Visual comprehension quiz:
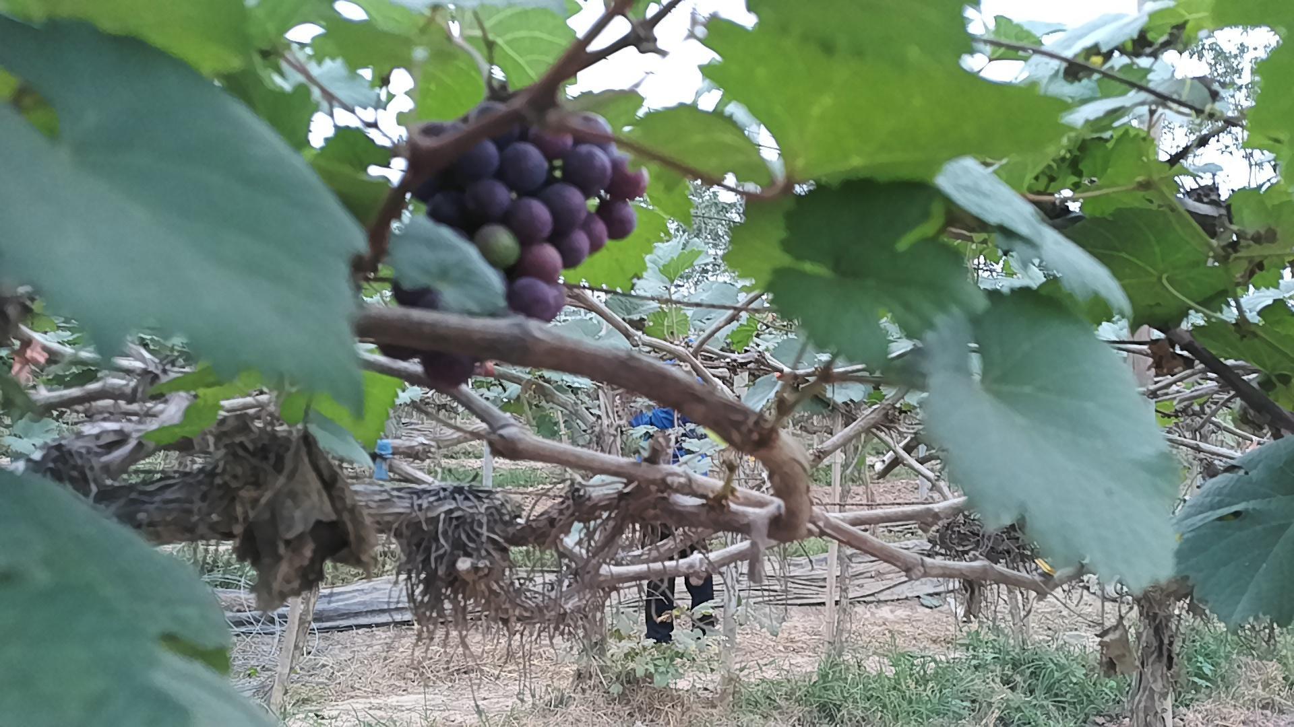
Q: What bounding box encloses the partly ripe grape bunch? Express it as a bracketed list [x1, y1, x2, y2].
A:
[377, 102, 648, 387]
